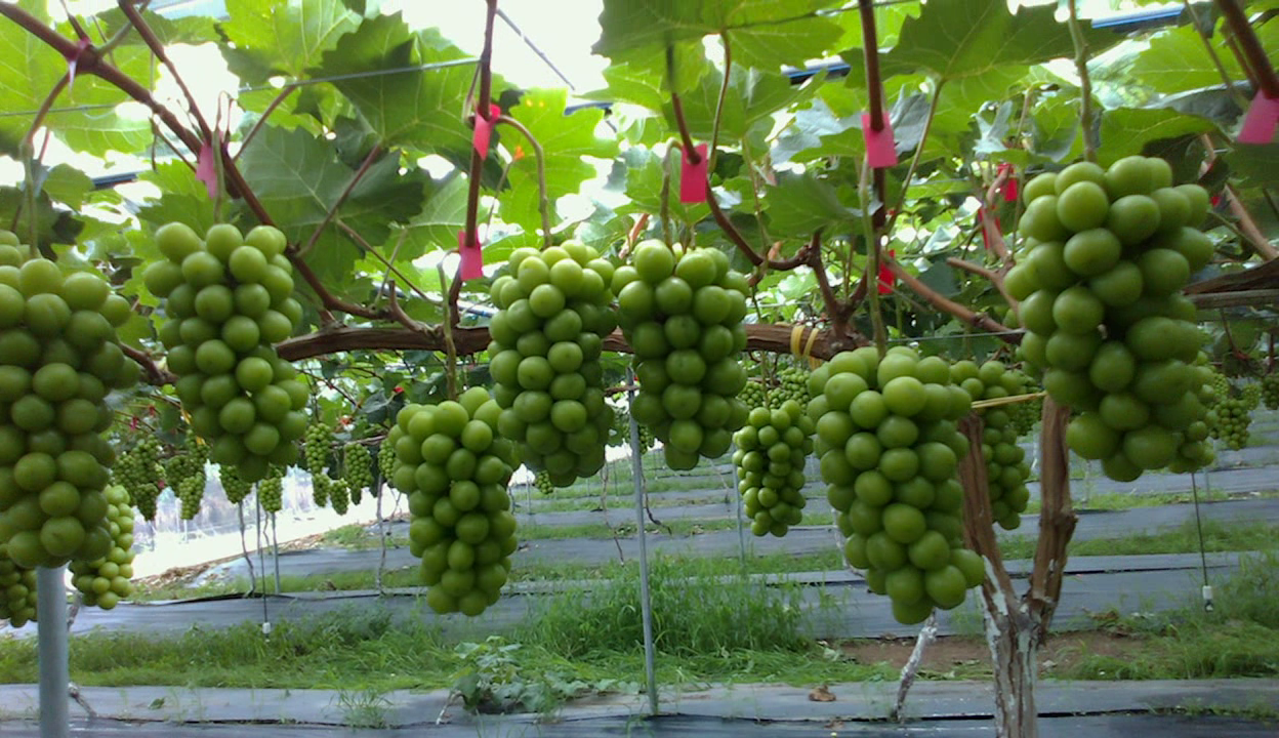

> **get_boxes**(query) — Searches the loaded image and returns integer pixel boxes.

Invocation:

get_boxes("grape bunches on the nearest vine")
[808,345,987,623]
[0,230,141,567]
[388,386,518,617]
[487,239,619,490]
[613,239,749,474]
[1005,157,1214,484]
[142,222,311,486]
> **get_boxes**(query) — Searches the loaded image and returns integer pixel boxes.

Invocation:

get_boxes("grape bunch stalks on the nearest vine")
[24,76,69,256]
[214,91,229,222]
[438,250,457,399]
[1068,1,1097,161]
[500,116,551,247]
[860,156,884,358]
[660,138,680,248]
